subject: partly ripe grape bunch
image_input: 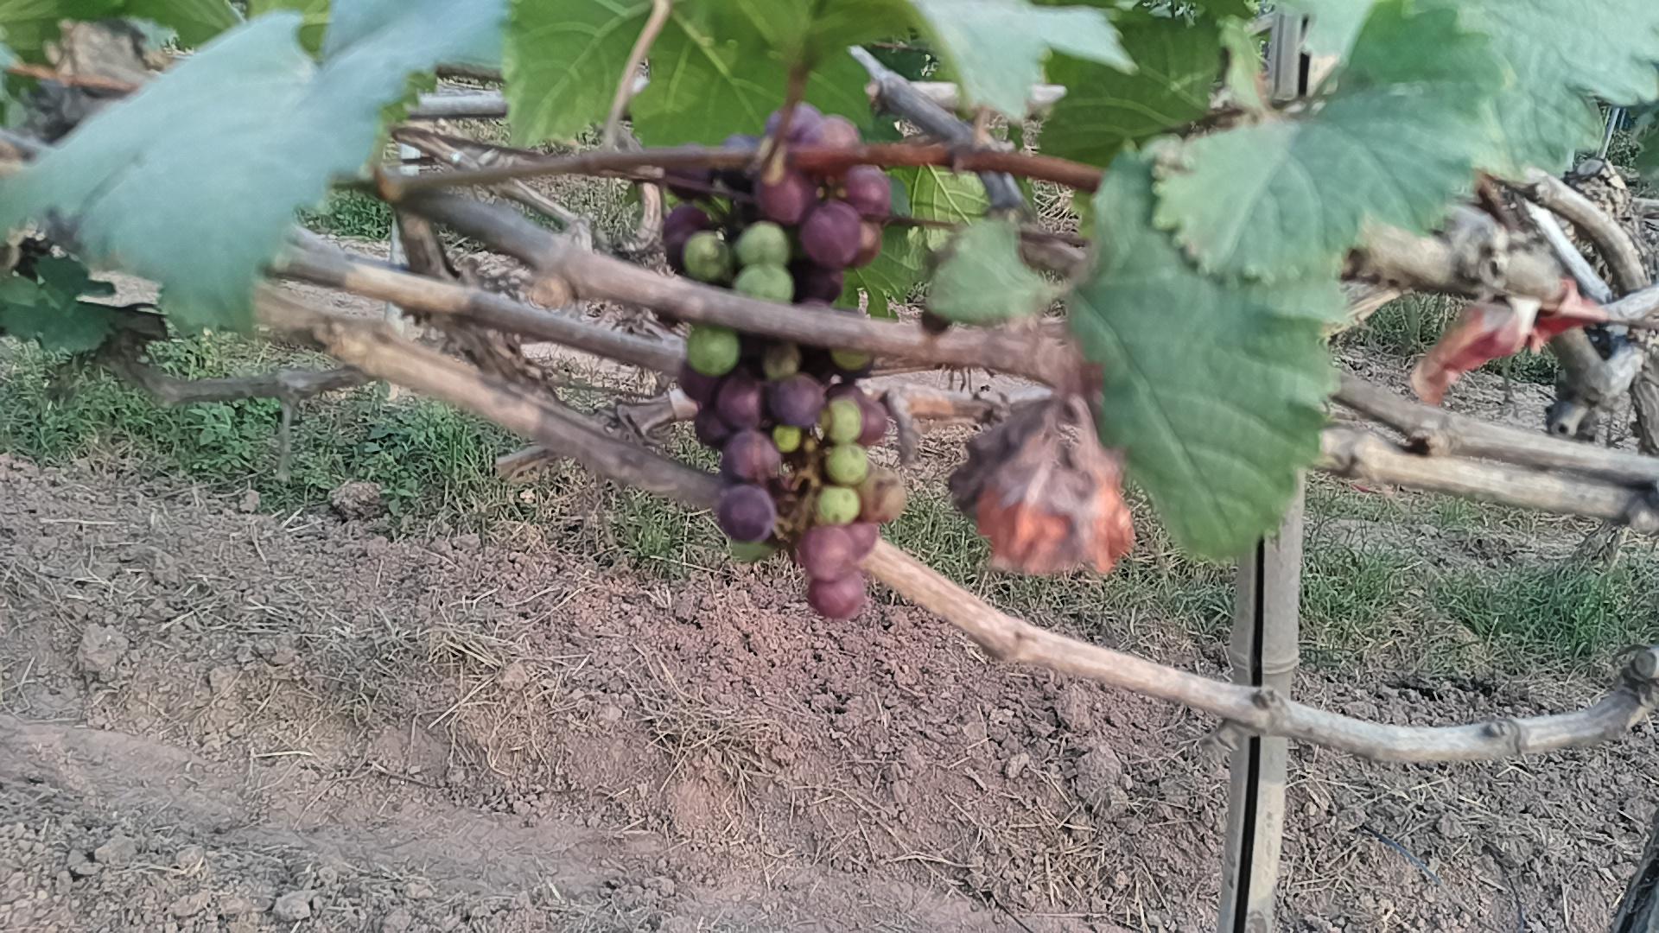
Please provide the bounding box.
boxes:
[660,102,906,621]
